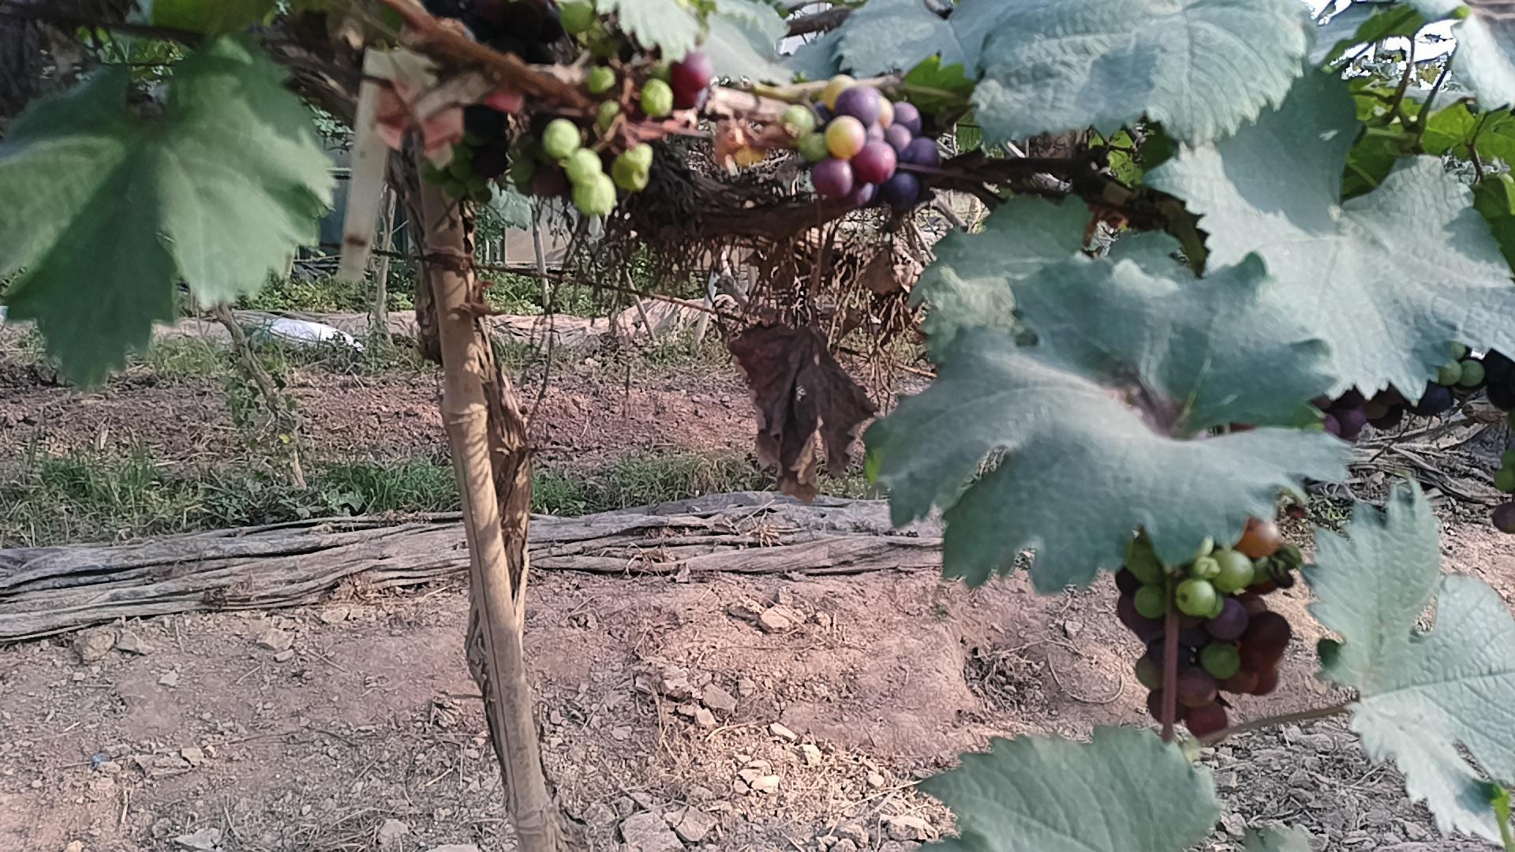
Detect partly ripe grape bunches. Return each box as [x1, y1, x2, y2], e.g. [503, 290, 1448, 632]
[1312, 342, 1514, 537]
[1115, 518, 1303, 738]
[421, 106, 509, 203]
[542, 0, 712, 215]
[784, 76, 938, 207]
